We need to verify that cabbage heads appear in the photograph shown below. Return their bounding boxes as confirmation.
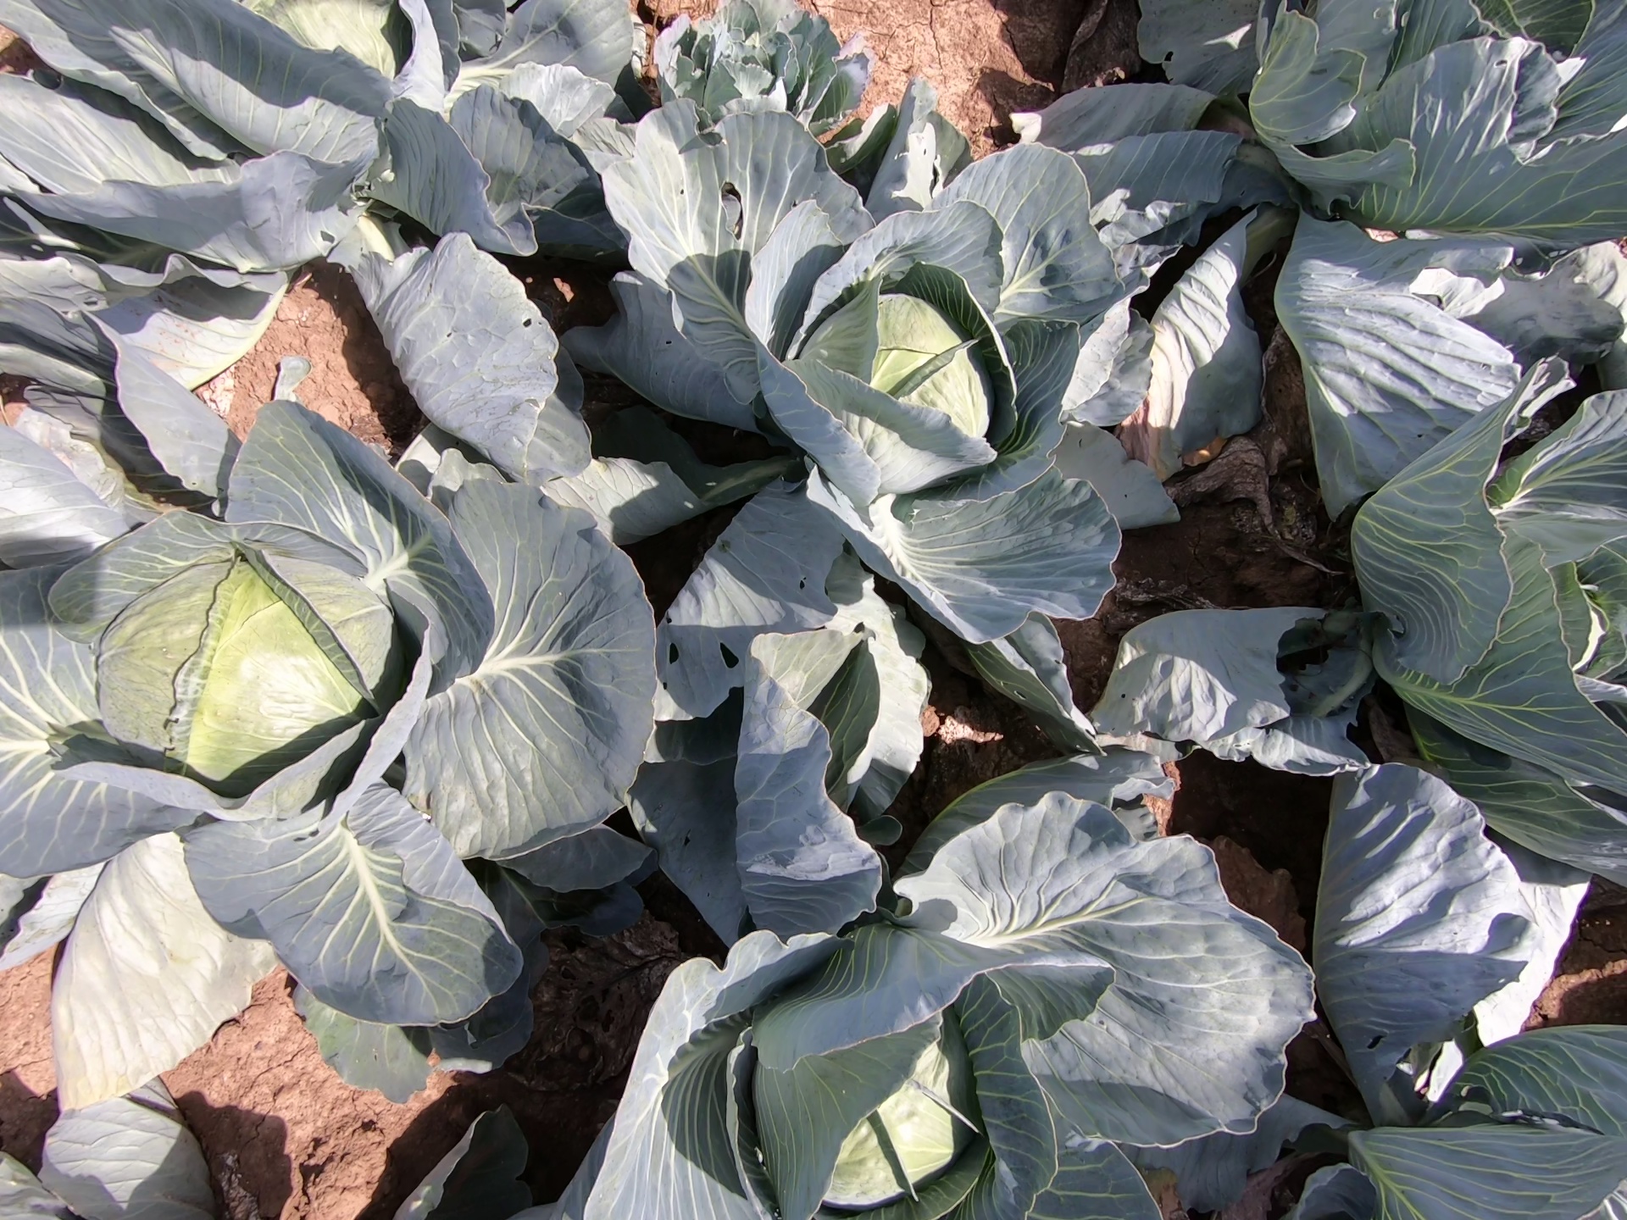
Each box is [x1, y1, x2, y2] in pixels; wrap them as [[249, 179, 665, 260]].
[[97, 556, 404, 797], [168, 2, 445, 182], [1471, 570, 1610, 679], [803, 292, 993, 481], [764, 995, 981, 1212]]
